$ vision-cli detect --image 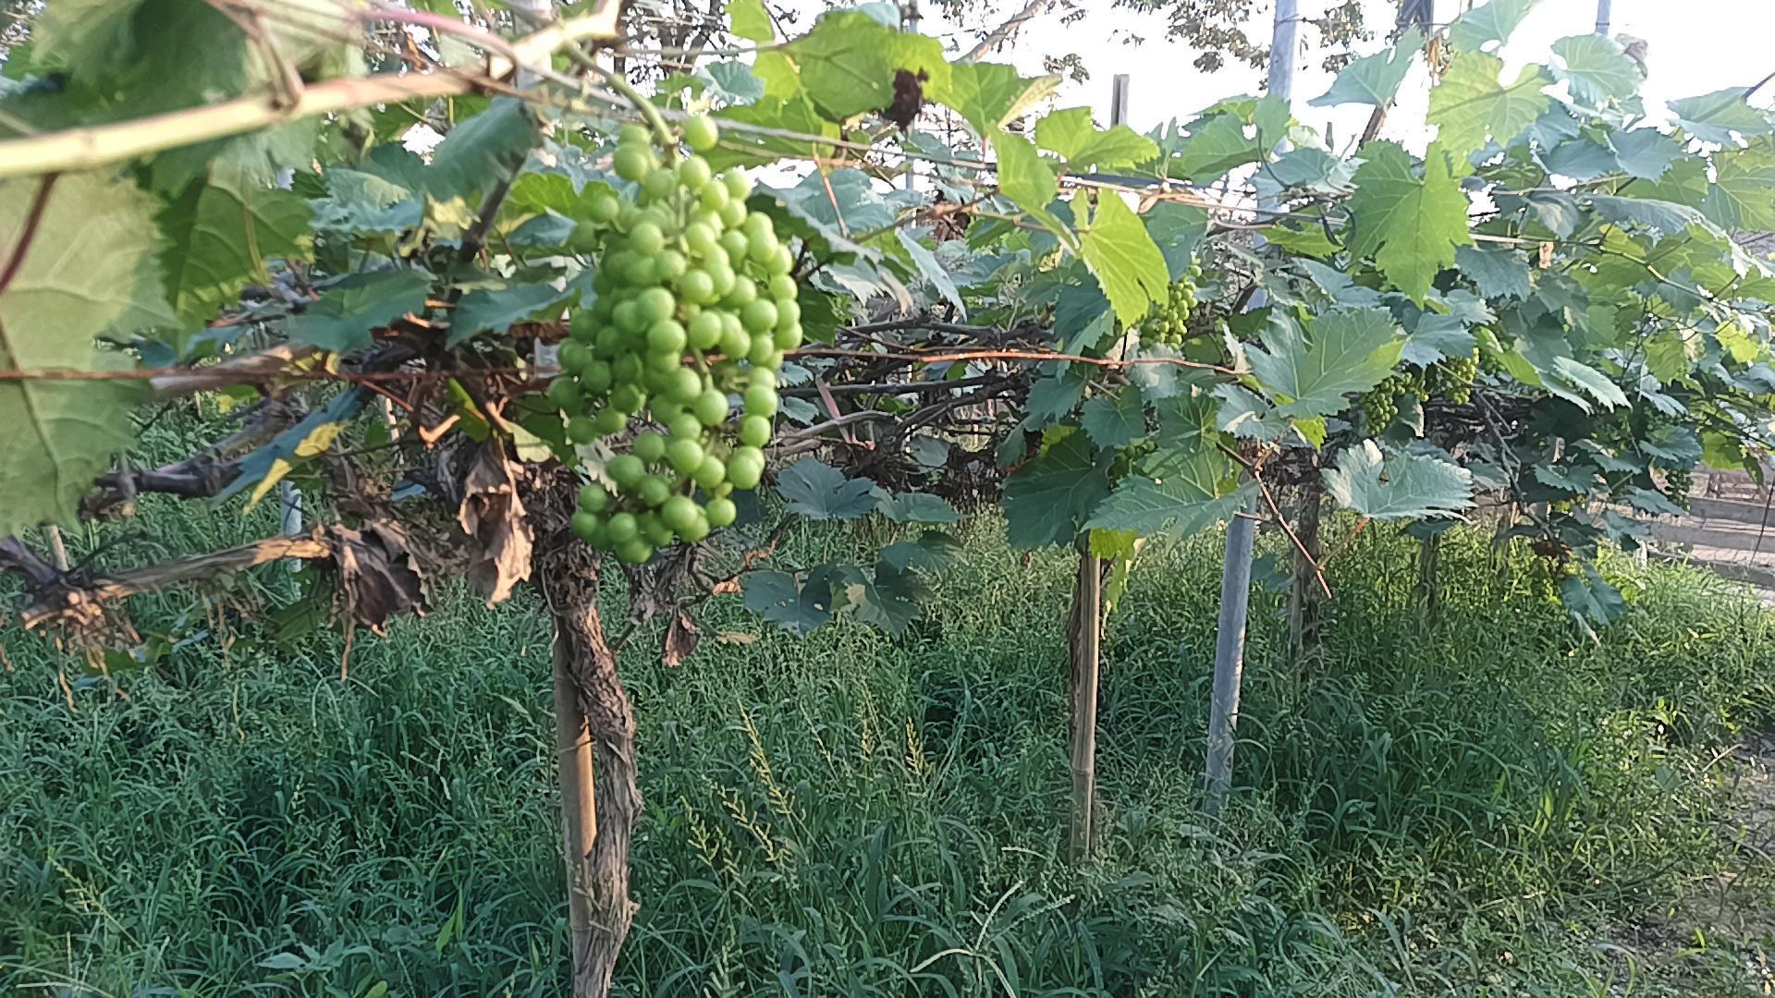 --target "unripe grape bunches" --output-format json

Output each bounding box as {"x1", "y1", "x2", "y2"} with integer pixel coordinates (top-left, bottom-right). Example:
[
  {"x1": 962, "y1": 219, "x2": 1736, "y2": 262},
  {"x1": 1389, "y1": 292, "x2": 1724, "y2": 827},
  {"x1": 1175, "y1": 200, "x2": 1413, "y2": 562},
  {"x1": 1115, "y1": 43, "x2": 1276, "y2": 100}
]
[
  {"x1": 1658, "y1": 469, "x2": 1693, "y2": 512},
  {"x1": 550, "y1": 194, "x2": 652, "y2": 445},
  {"x1": 1135, "y1": 258, "x2": 1201, "y2": 350},
  {"x1": 570, "y1": 116, "x2": 803, "y2": 565},
  {"x1": 1438, "y1": 336, "x2": 1480, "y2": 404},
  {"x1": 1361, "y1": 369, "x2": 1428, "y2": 435}
]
